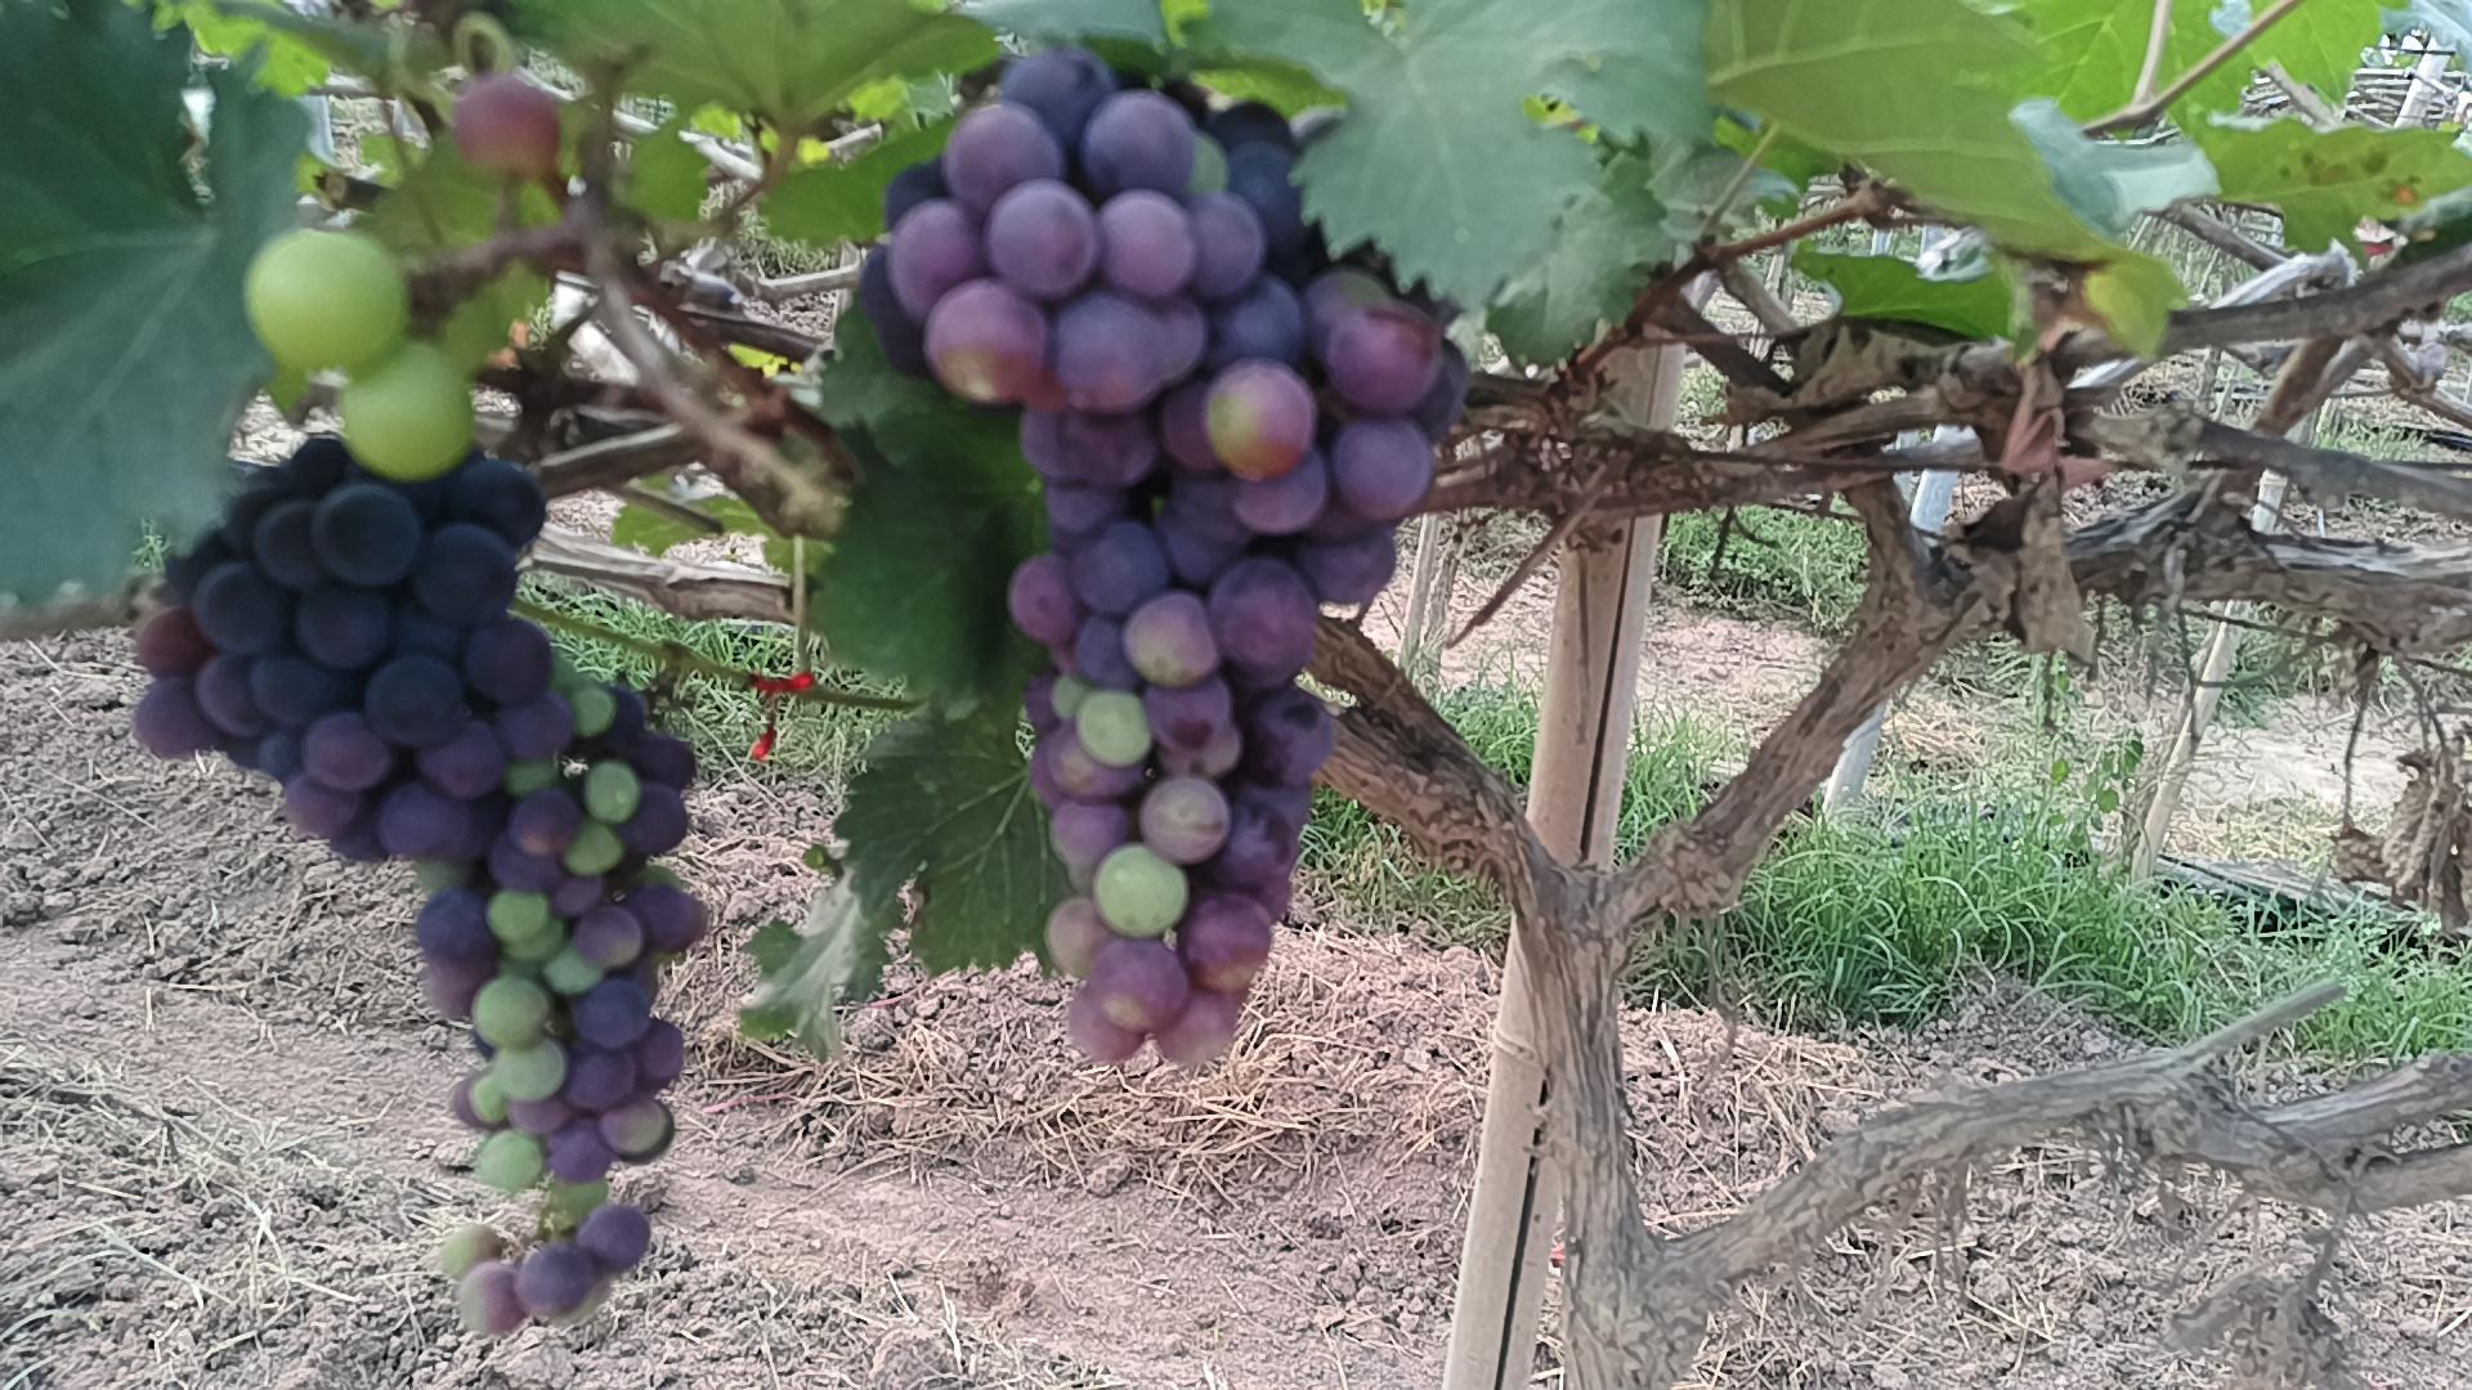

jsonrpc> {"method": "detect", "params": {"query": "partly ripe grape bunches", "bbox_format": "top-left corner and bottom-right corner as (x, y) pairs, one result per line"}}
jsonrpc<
(847, 48), (1463, 1064)
(135, 436), (707, 1336)
(247, 69), (568, 479)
